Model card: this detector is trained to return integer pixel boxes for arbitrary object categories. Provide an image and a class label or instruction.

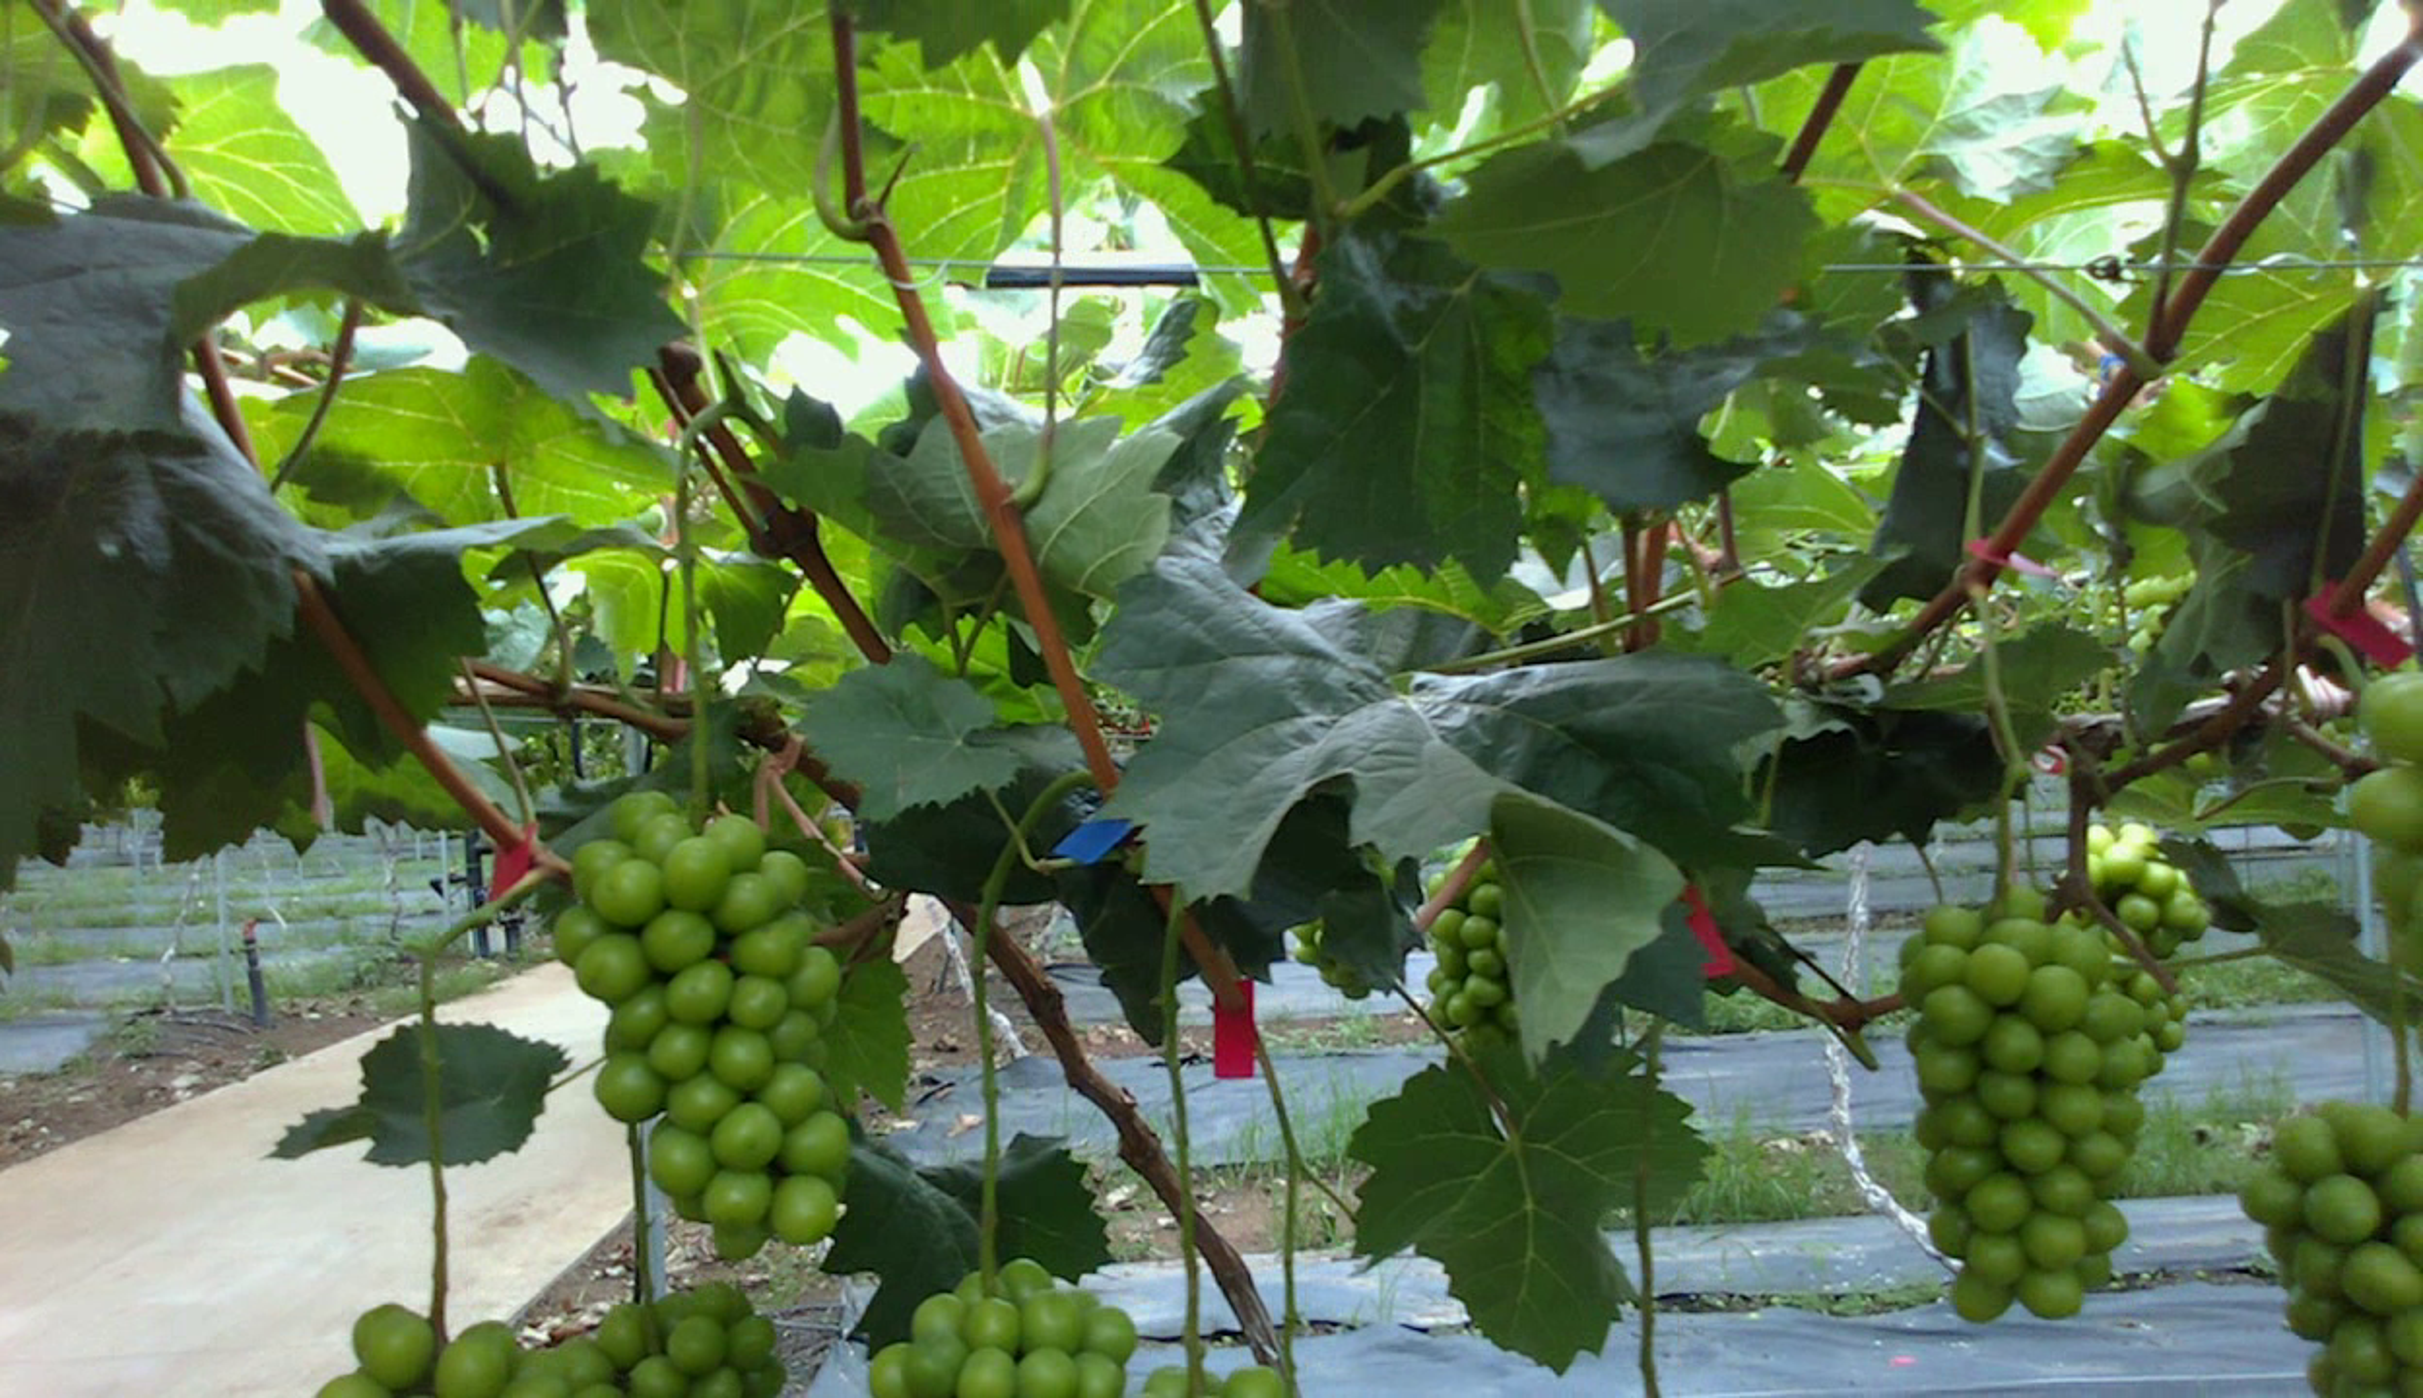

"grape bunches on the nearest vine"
[316,1301,567,1396]
[2345,672,2421,981]
[1897,885,2147,1320]
[866,1258,1136,1396]
[548,1278,786,1396]
[2240,1093,2419,1396]
[553,790,850,1260]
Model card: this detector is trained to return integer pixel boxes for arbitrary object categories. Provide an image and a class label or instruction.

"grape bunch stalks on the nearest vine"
[674,400,728,837]
[1969,584,2027,920]
[967,769,1087,1299]
[2386,969,2409,1113]
[1161,882,1208,1396]
[419,864,548,1348]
